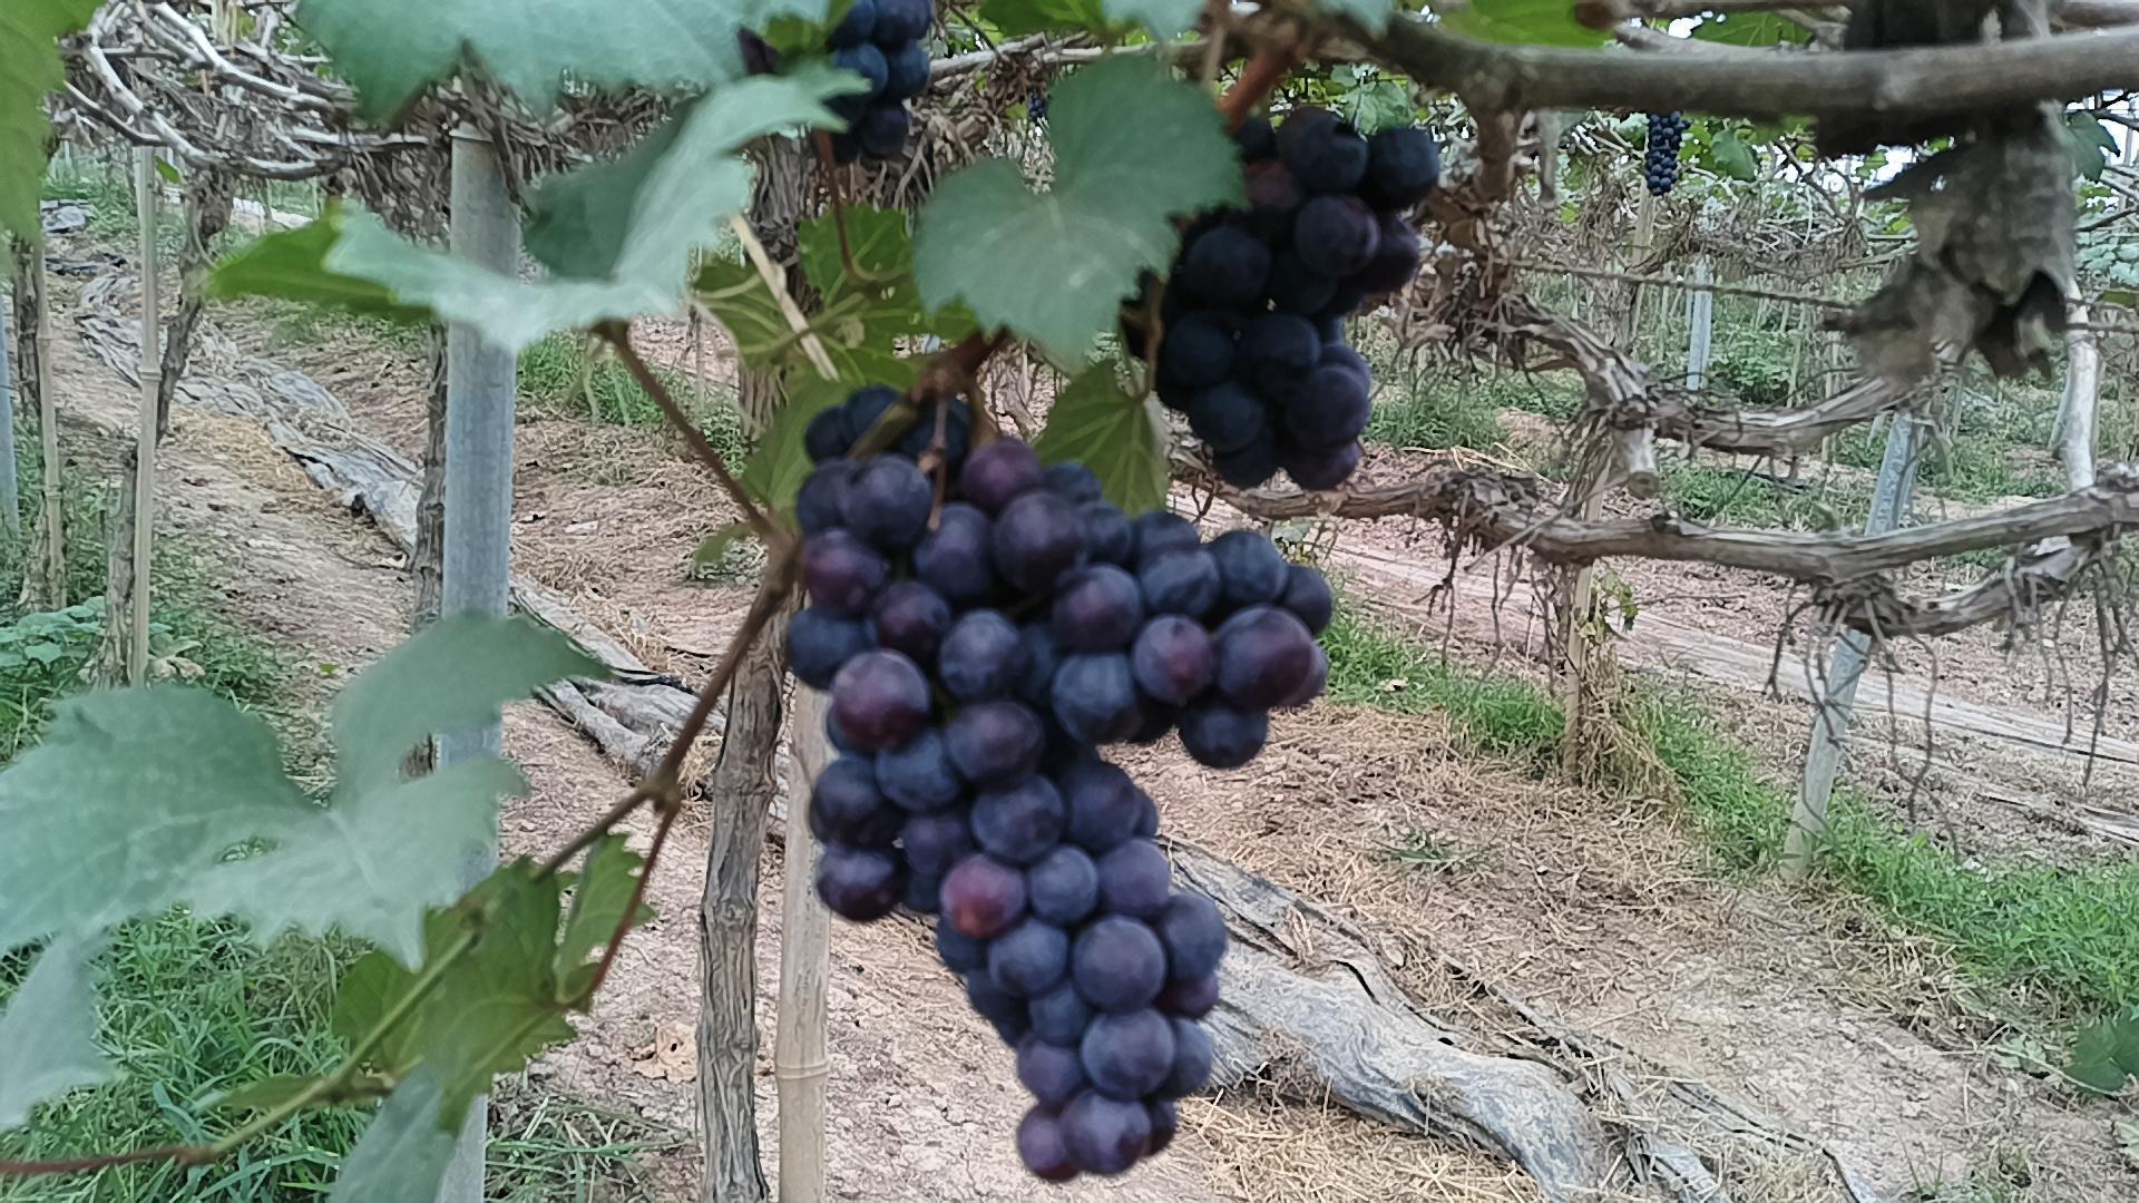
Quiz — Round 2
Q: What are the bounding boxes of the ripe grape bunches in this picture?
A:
[783,387,1332,1178]
[1642,111,1691,198]
[813,0,935,167]
[1156,107,1439,489]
